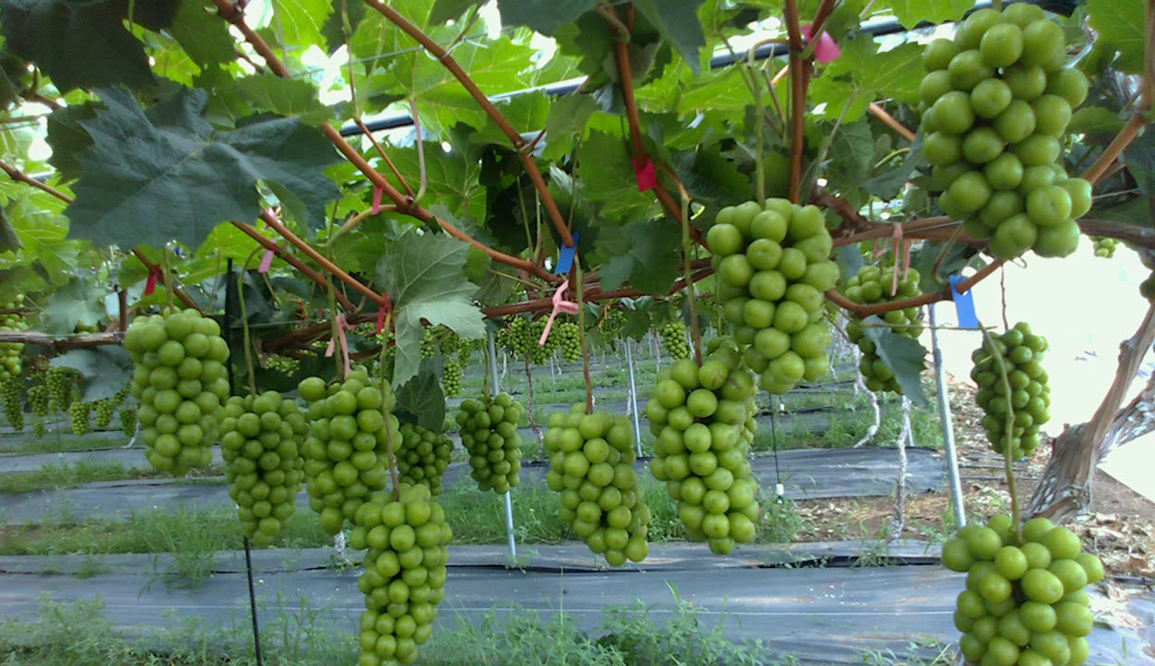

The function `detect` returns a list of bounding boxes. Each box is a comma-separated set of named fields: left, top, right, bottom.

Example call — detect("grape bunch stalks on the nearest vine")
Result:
left=993, top=1, right=1001, bottom=9
left=163, top=246, right=176, bottom=313
left=978, top=322, right=1024, bottom=545
left=326, top=244, right=345, bottom=384
left=658, top=162, right=702, bottom=367
left=378, top=313, right=400, bottom=501
left=237, top=244, right=264, bottom=400
left=748, top=39, right=788, bottom=207
left=574, top=253, right=593, bottom=413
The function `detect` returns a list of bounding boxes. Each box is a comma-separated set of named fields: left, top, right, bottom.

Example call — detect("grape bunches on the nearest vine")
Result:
left=220, top=391, right=306, bottom=549
left=124, top=307, right=230, bottom=476
left=707, top=198, right=838, bottom=395
left=940, top=514, right=1102, bottom=665
left=543, top=402, right=650, bottom=567
left=643, top=339, right=759, bottom=554
left=918, top=3, right=1093, bottom=262
left=299, top=368, right=389, bottom=536
left=350, top=484, right=452, bottom=665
